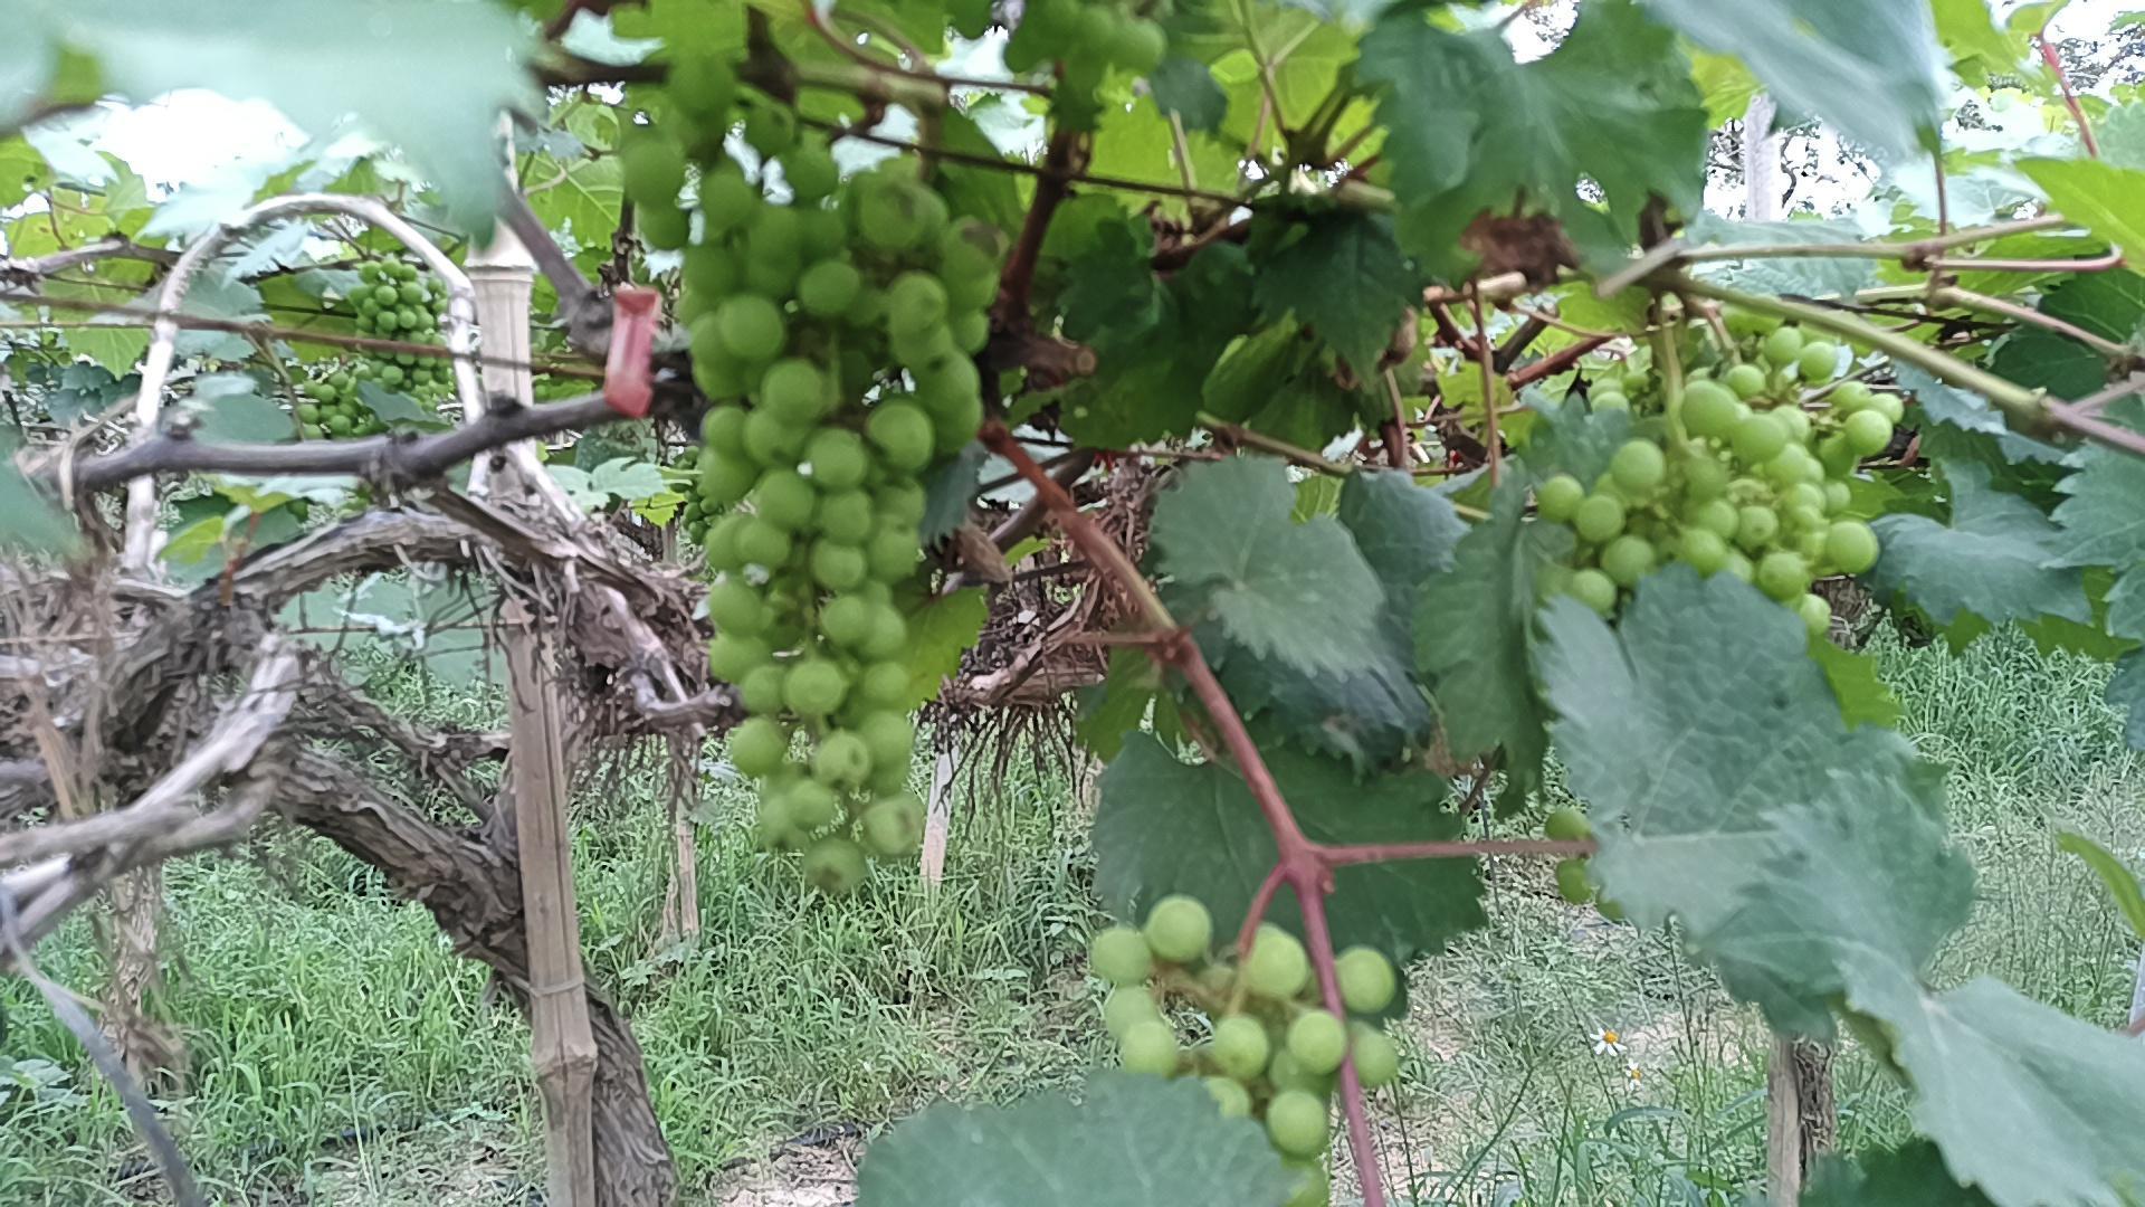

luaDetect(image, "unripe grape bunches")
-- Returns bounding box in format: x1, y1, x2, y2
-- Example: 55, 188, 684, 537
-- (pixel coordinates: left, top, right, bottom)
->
1090, 897, 1398, 1206
1545, 808, 1626, 919
1047, 0, 1174, 67
351, 262, 452, 395
670, 446, 742, 544
1536, 297, 1905, 634
296, 369, 394, 437
622, 54, 995, 893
